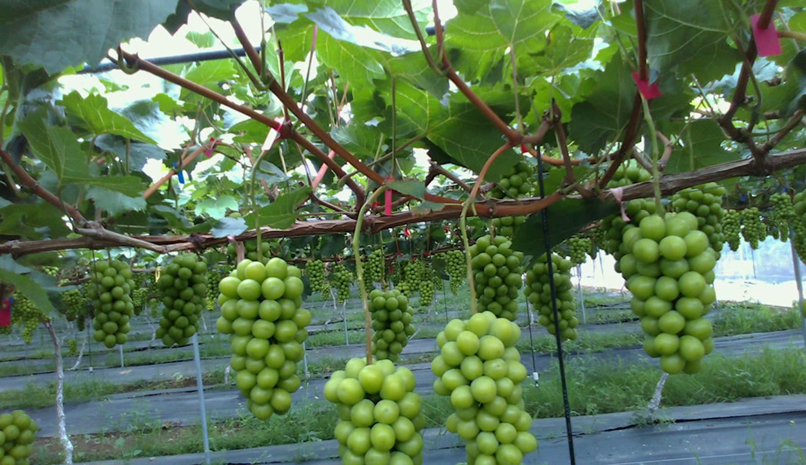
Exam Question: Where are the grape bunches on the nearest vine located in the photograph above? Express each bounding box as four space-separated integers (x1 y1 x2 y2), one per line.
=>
322 356 424 464
216 257 311 420
430 310 537 464
619 212 716 375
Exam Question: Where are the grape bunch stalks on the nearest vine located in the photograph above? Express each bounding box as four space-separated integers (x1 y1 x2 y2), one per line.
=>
460 141 513 315
639 92 665 217
350 185 386 364
247 150 266 263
